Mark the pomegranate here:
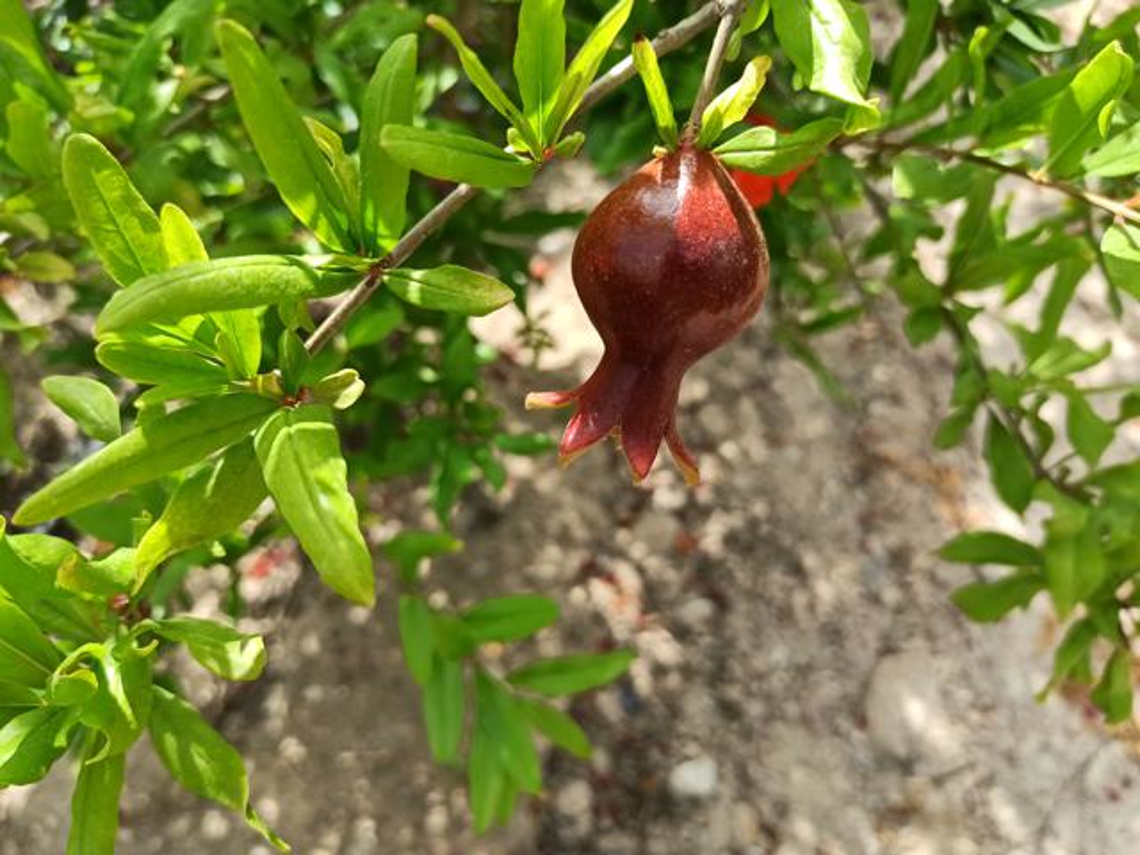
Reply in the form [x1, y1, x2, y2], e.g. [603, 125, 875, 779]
[522, 144, 769, 488]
